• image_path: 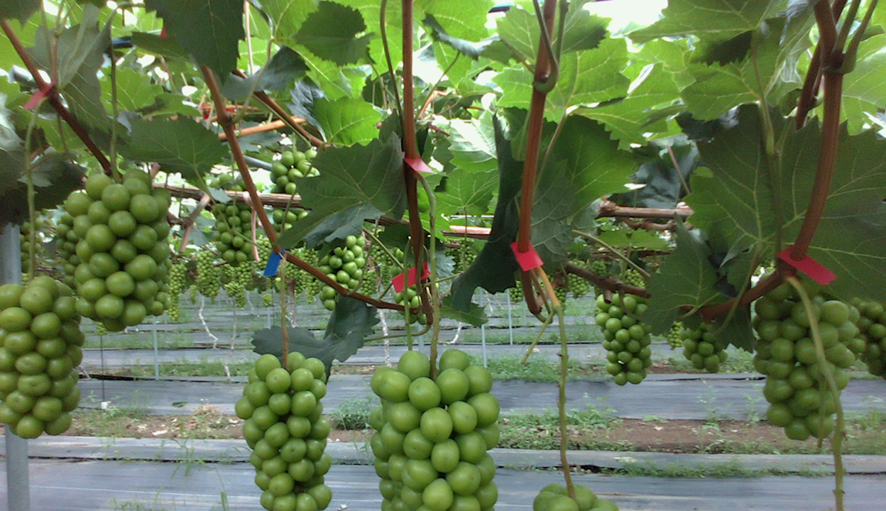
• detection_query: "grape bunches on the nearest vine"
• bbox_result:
[234,352,333,510]
[1,275,85,437]
[369,348,501,510]
[533,483,619,507]
[66,169,170,331]
[752,282,865,441]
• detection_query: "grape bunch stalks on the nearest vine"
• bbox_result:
[534,268,575,499]
[25,96,45,282]
[280,256,290,368]
[787,276,848,510]
[412,171,442,380]
[107,1,148,185]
